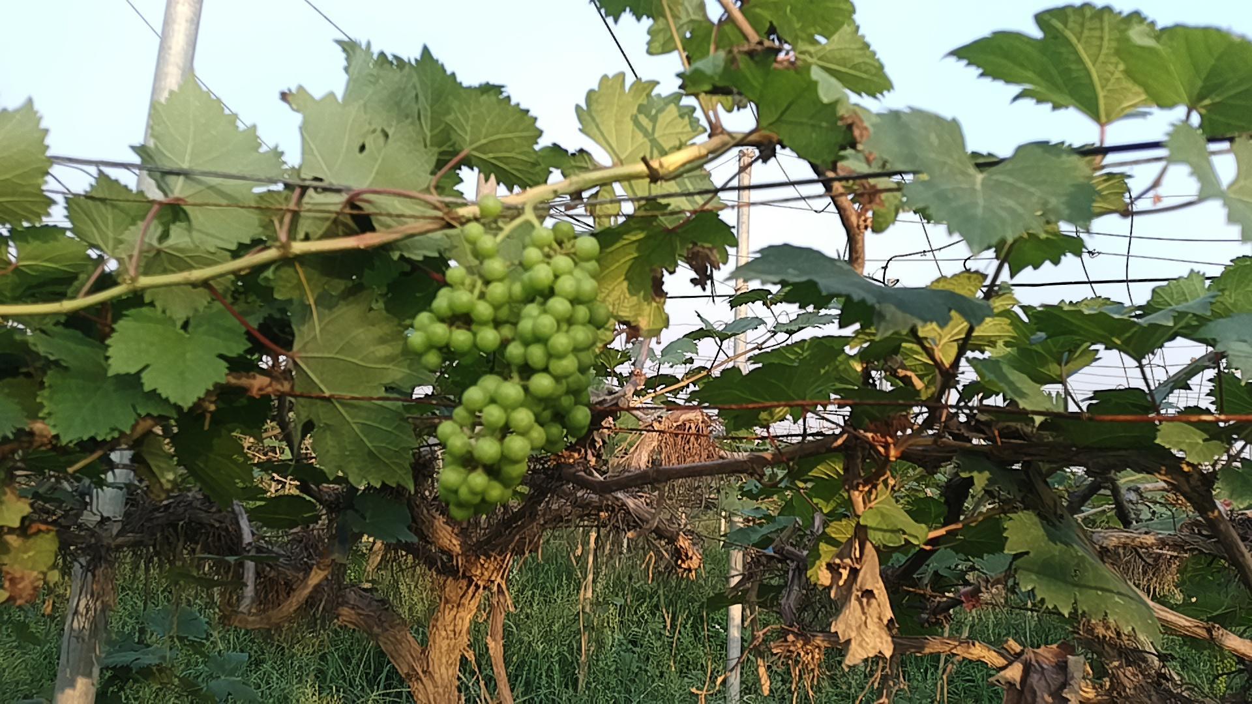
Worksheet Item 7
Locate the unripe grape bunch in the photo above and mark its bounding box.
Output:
[408,196,610,521]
